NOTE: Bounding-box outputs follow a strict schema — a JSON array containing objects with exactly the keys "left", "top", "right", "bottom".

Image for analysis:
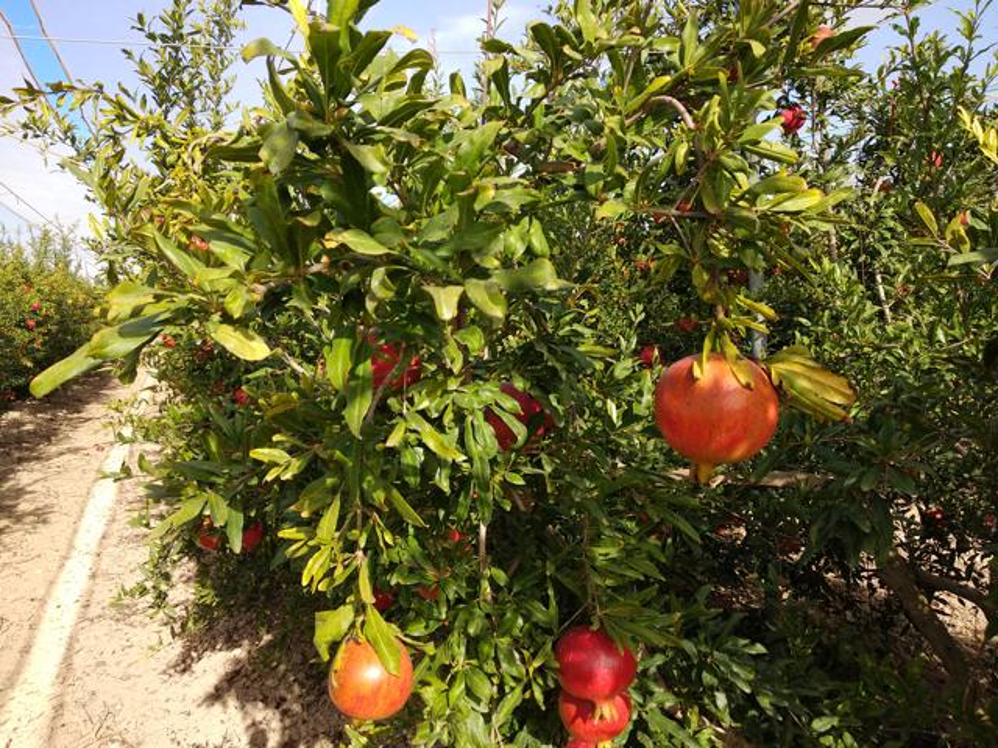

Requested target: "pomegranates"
[
  {"left": 196, "top": 520, "right": 221, "bottom": 552},
  {"left": 329, "top": 637, "right": 415, "bottom": 722},
  {"left": 773, "top": 103, "right": 806, "bottom": 137},
  {"left": 655, "top": 352, "right": 780, "bottom": 485},
  {"left": 557, "top": 690, "right": 632, "bottom": 748},
  {"left": 371, "top": 343, "right": 421, "bottom": 390},
  {"left": 243, "top": 524, "right": 264, "bottom": 552},
  {"left": 554, "top": 623, "right": 636, "bottom": 723},
  {"left": 483, "top": 380, "right": 552, "bottom": 452}
]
